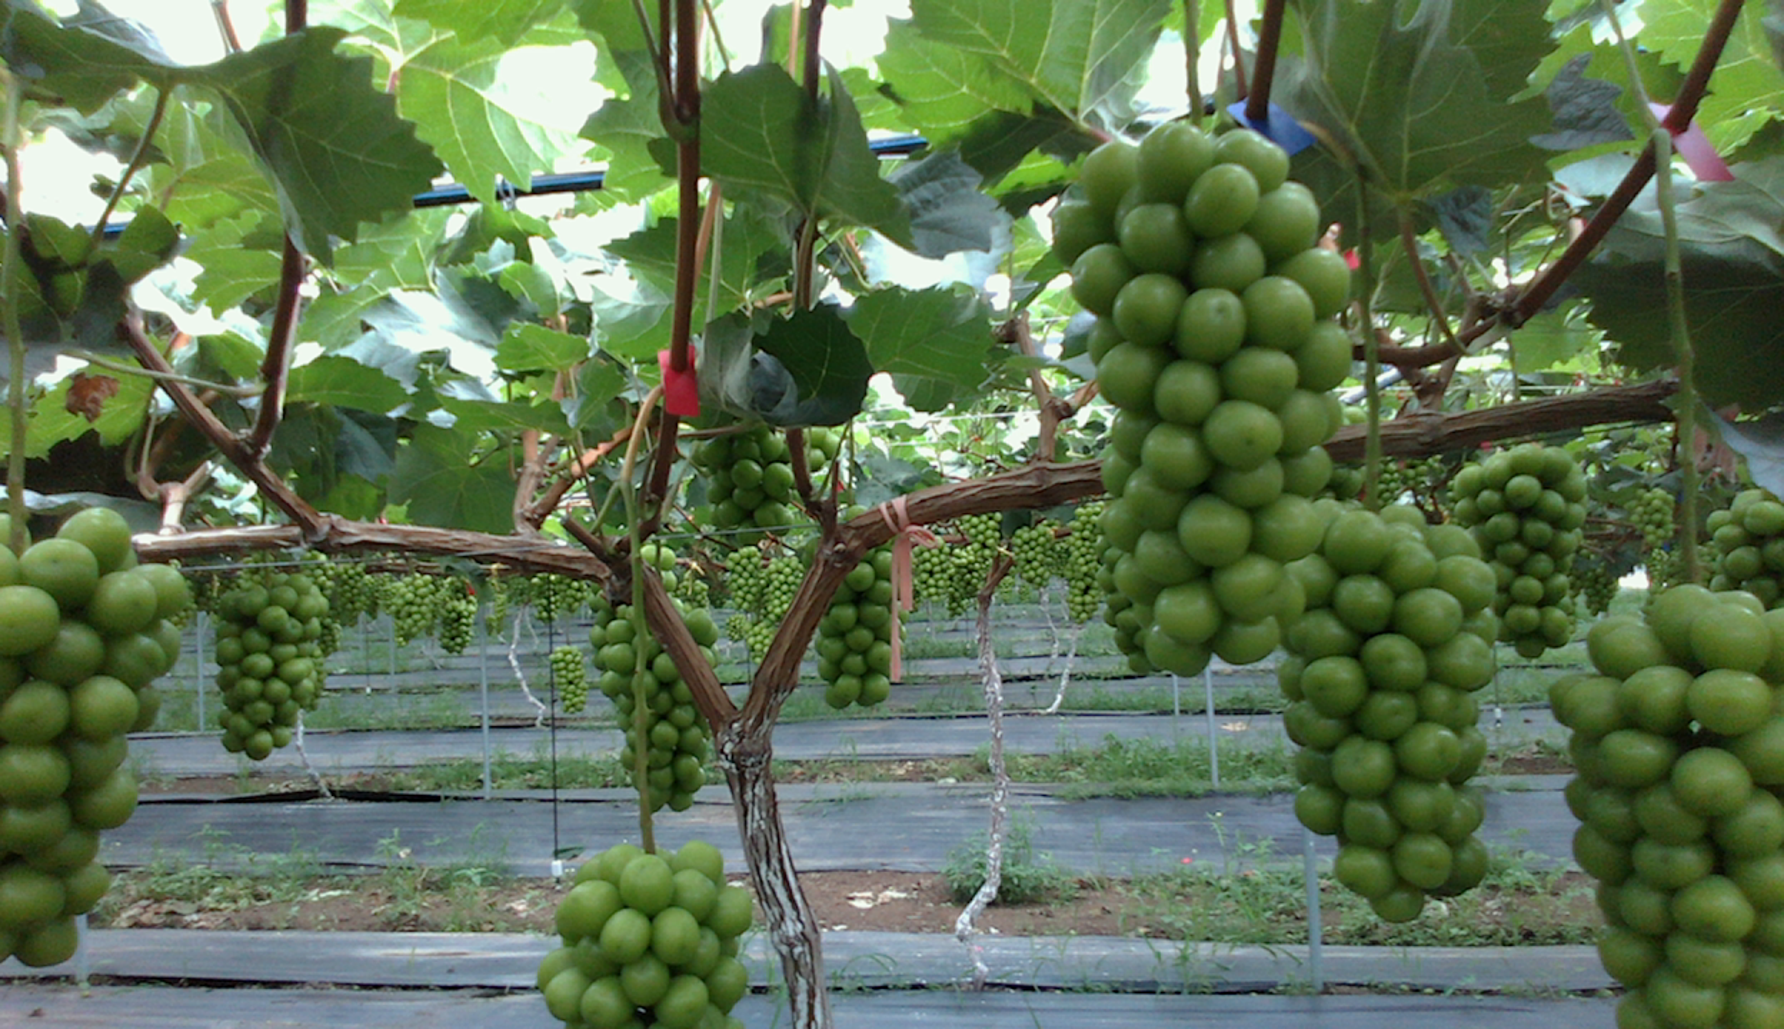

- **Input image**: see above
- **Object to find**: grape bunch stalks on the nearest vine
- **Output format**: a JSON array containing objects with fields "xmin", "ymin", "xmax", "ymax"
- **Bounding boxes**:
[
  {"xmin": 1298, "ymin": 116, "xmax": 1381, "ymax": 510},
  {"xmin": 1, "ymin": 69, "xmax": 29, "ymax": 556},
  {"xmin": 1648, "ymin": 129, "xmax": 1700, "ymax": 583},
  {"xmin": 620, "ymin": 384, "xmax": 660, "ymax": 853},
  {"xmin": 1185, "ymin": 4, "xmax": 1206, "ymax": 124}
]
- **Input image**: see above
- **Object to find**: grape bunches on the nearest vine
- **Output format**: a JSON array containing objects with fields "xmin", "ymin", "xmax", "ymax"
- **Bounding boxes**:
[
  {"xmin": 0, "ymin": 507, "xmax": 187, "ymax": 968},
  {"xmin": 1277, "ymin": 497, "xmax": 1500, "ymax": 920},
  {"xmin": 1545, "ymin": 582, "xmax": 1783, "ymax": 1026},
  {"xmin": 539, "ymin": 839, "xmax": 752, "ymax": 1028},
  {"xmin": 1049, "ymin": 119, "xmax": 1351, "ymax": 676}
]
